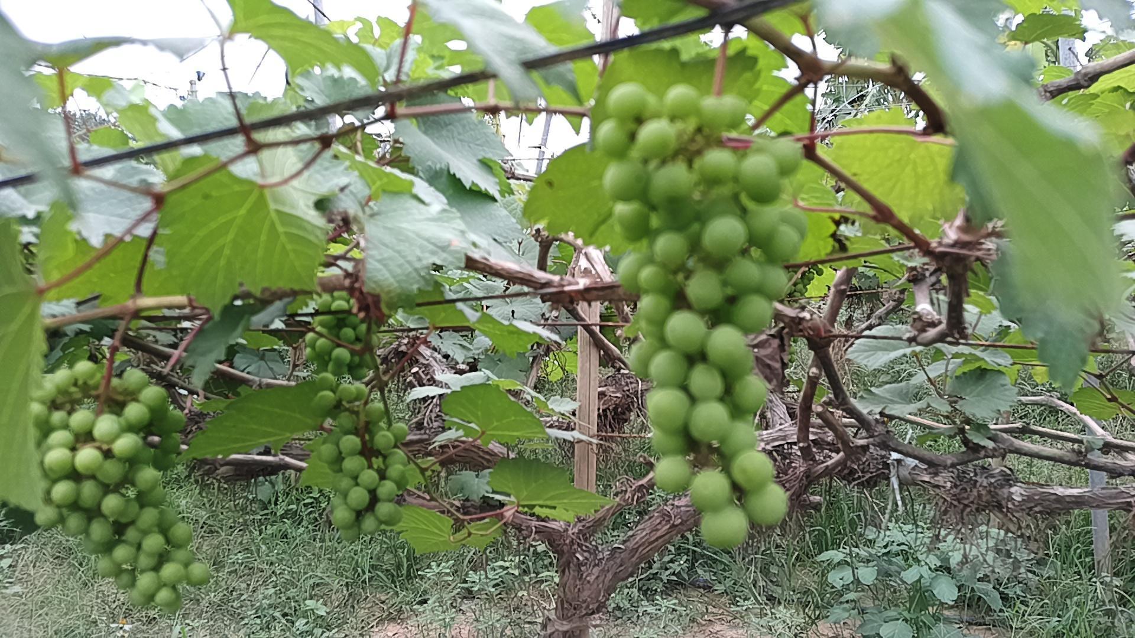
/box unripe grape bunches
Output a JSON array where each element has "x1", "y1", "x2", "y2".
[
  {"x1": 309, "y1": 373, "x2": 410, "y2": 540},
  {"x1": 31, "y1": 360, "x2": 210, "y2": 612},
  {"x1": 596, "y1": 84, "x2": 806, "y2": 548},
  {"x1": 305, "y1": 292, "x2": 382, "y2": 379}
]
